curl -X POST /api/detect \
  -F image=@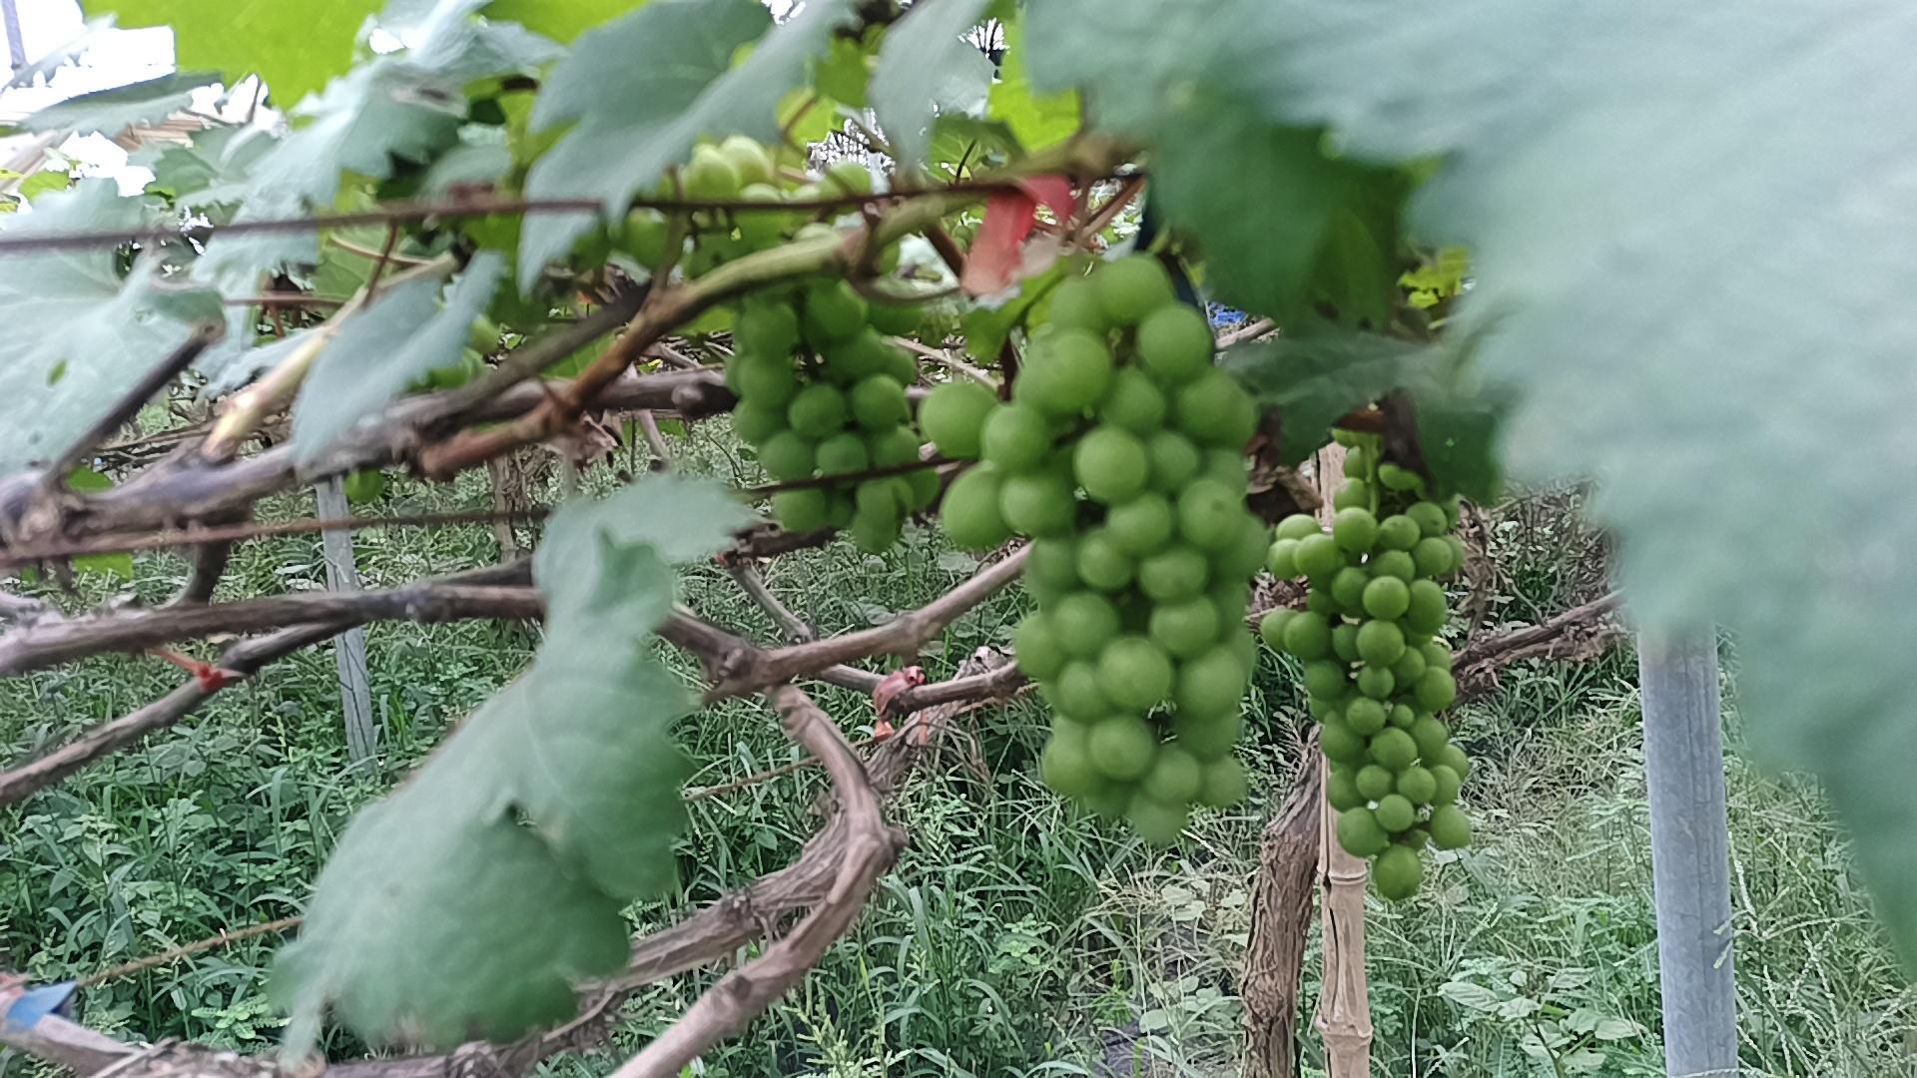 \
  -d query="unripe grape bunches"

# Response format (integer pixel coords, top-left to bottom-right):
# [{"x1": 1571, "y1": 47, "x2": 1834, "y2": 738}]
[
  {"x1": 1259, "y1": 429, "x2": 1471, "y2": 899},
  {"x1": 415, "y1": 313, "x2": 501, "y2": 387},
  {"x1": 614, "y1": 136, "x2": 947, "y2": 551},
  {"x1": 921, "y1": 255, "x2": 1268, "y2": 844}
]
